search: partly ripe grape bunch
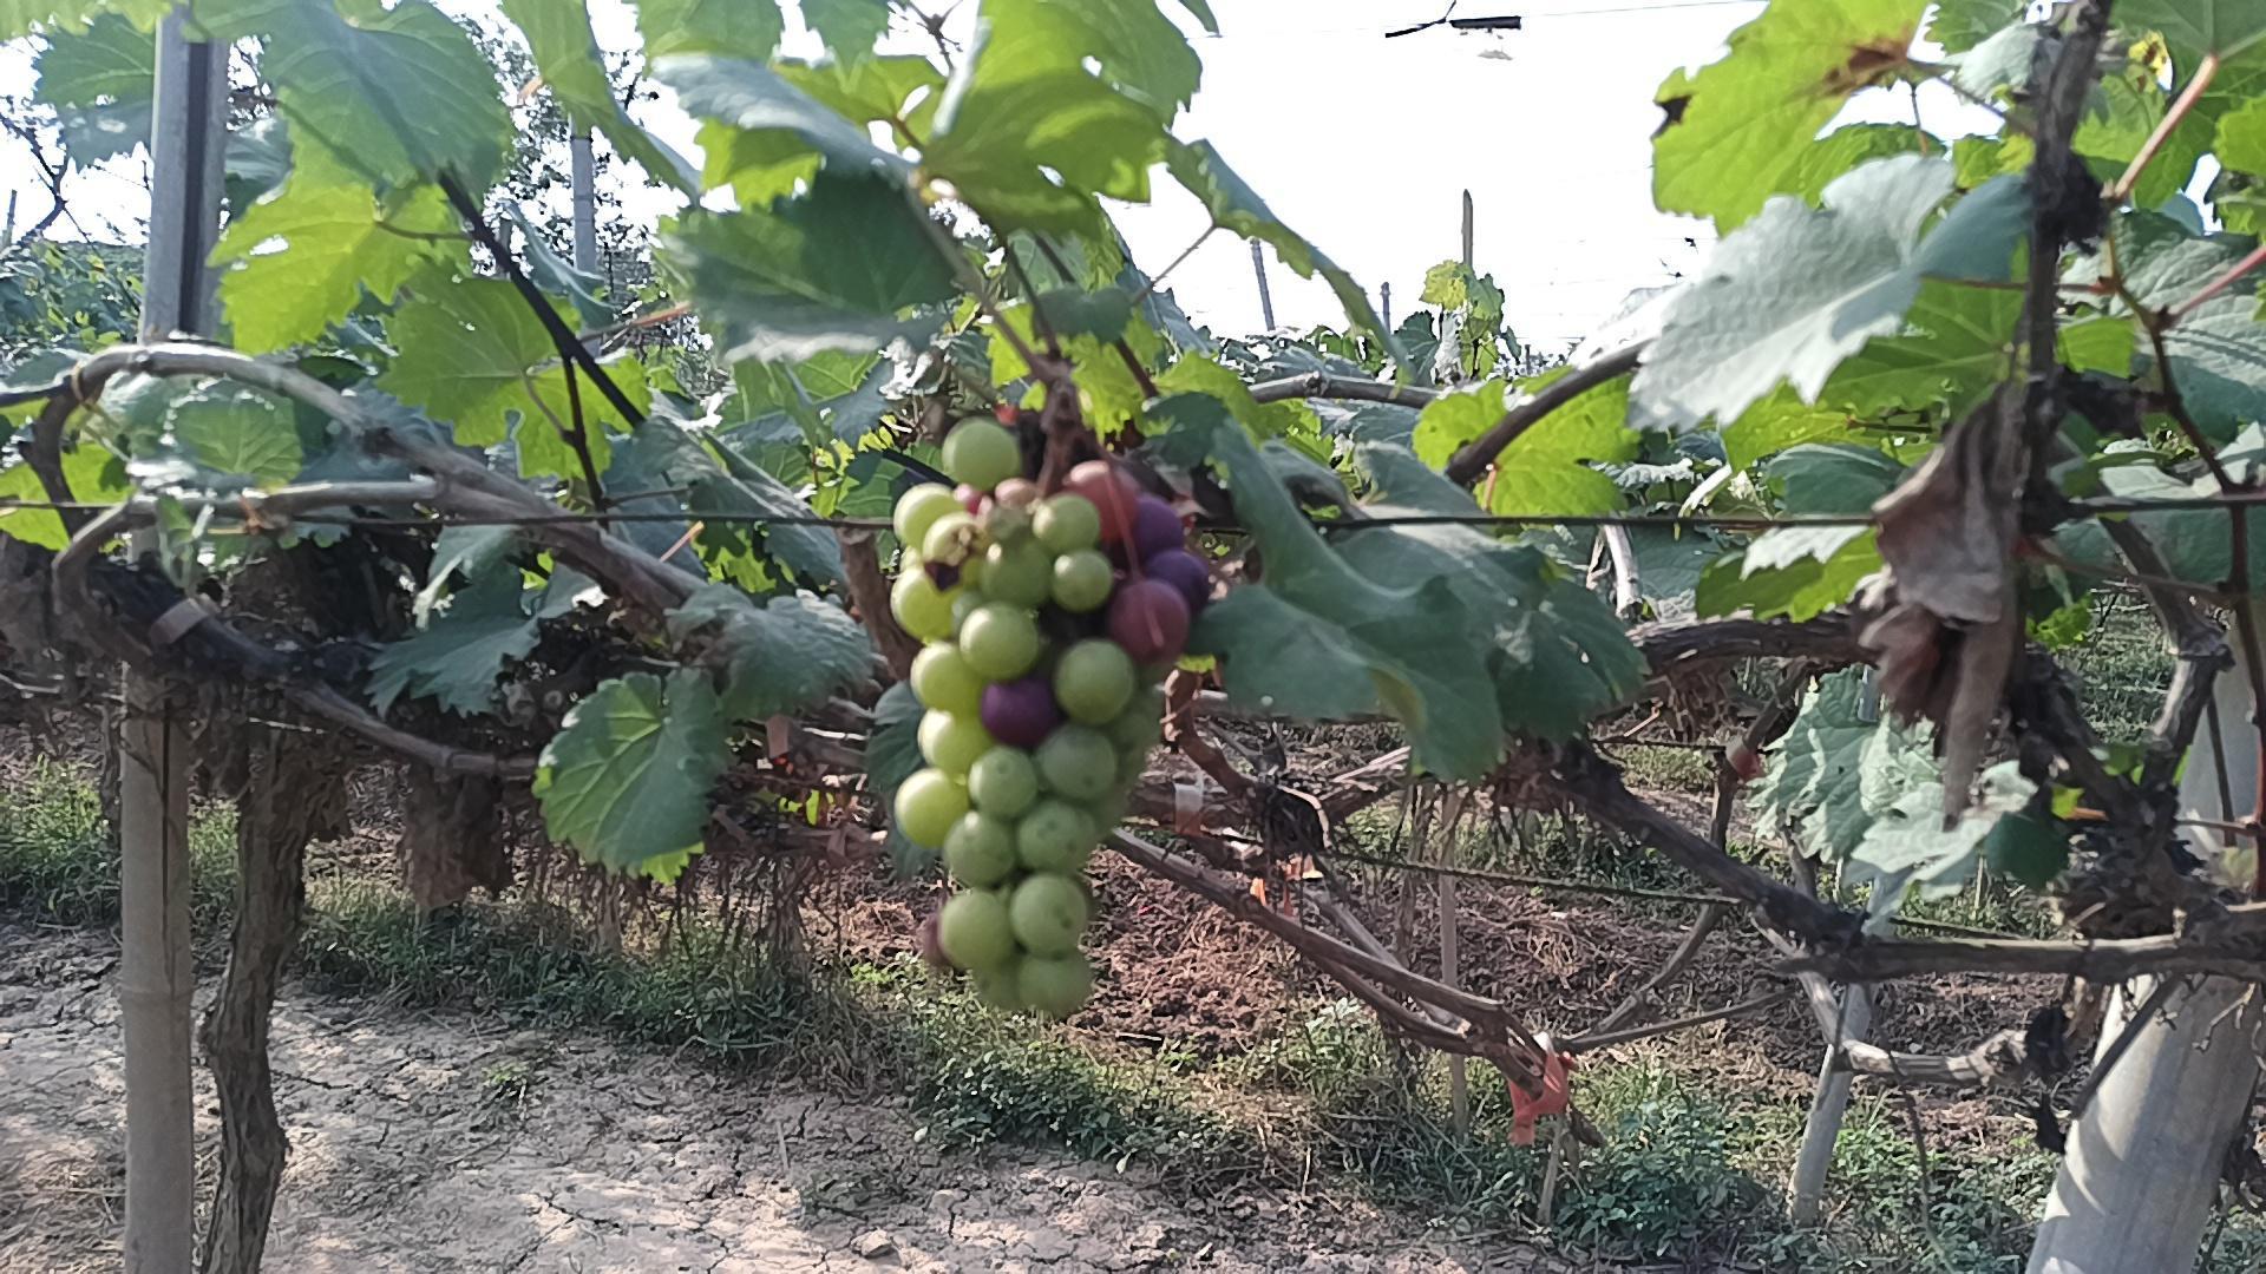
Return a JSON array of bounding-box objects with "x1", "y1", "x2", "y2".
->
[{"x1": 891, "y1": 420, "x2": 1211, "y2": 1014}]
